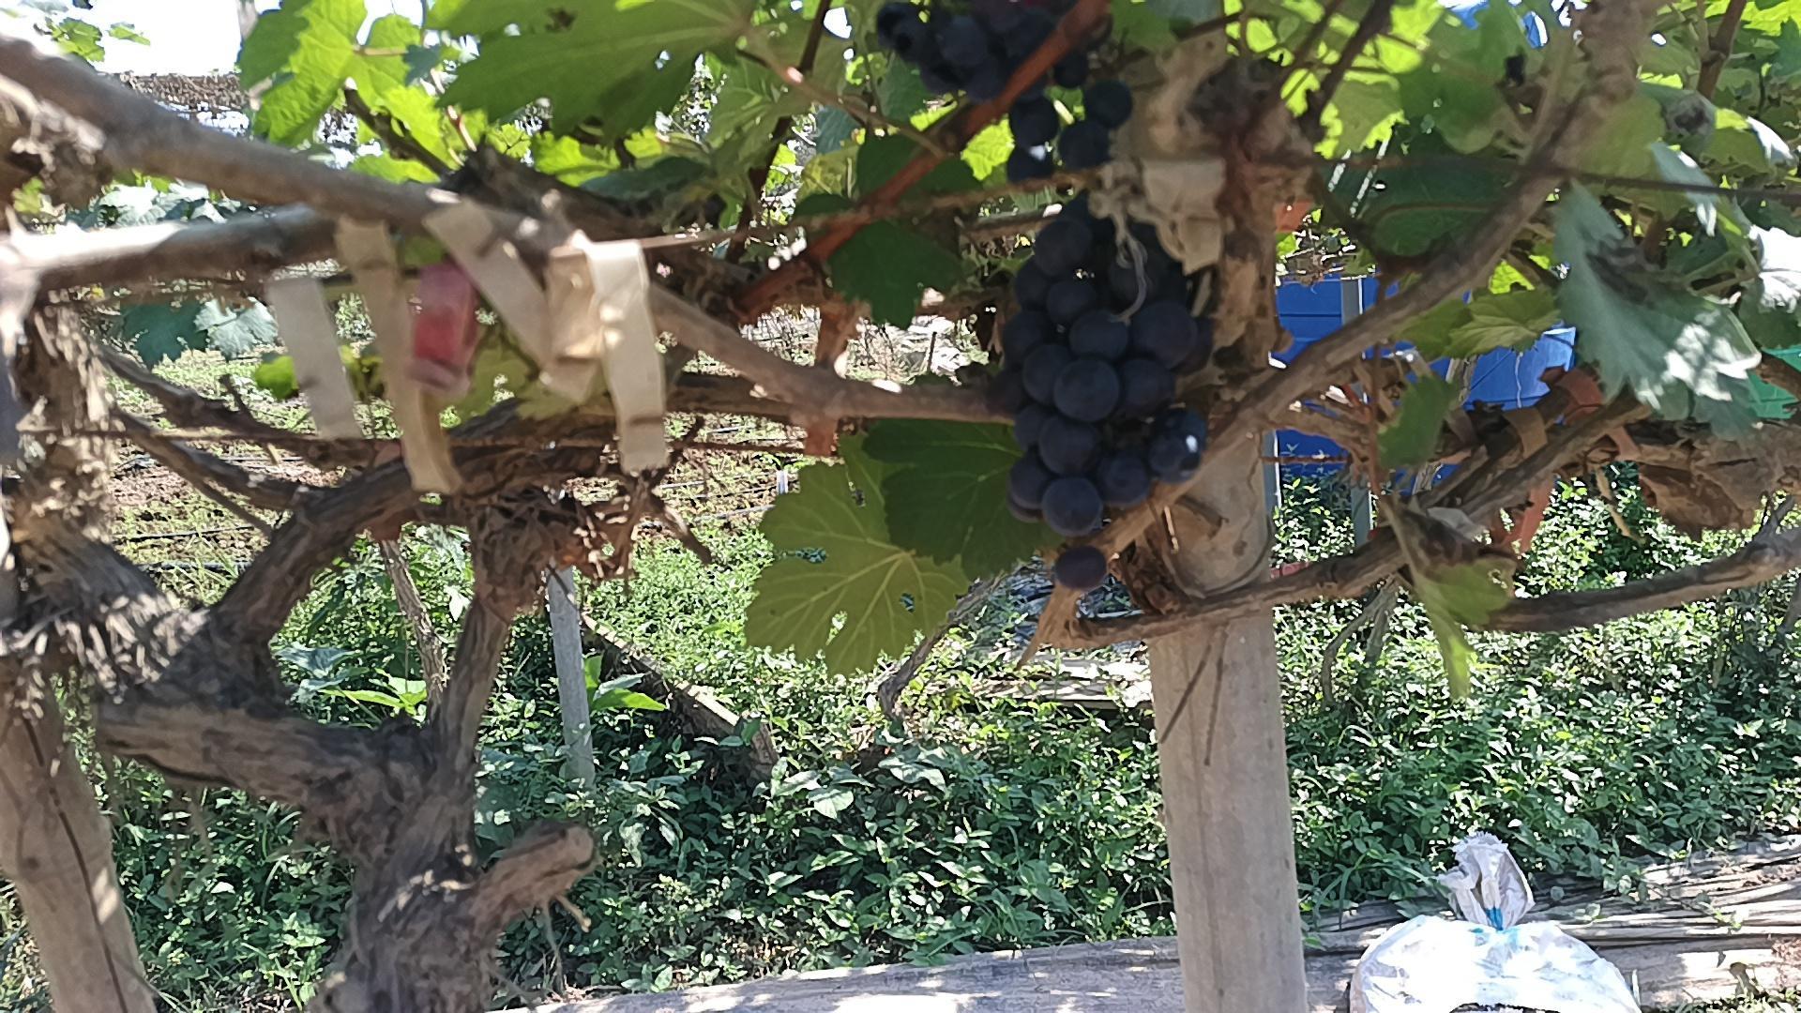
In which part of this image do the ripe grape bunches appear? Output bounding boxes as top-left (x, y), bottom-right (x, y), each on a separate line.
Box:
top-left (875, 0), bottom-right (1131, 183)
top-left (1000, 196), bottom-right (1209, 594)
